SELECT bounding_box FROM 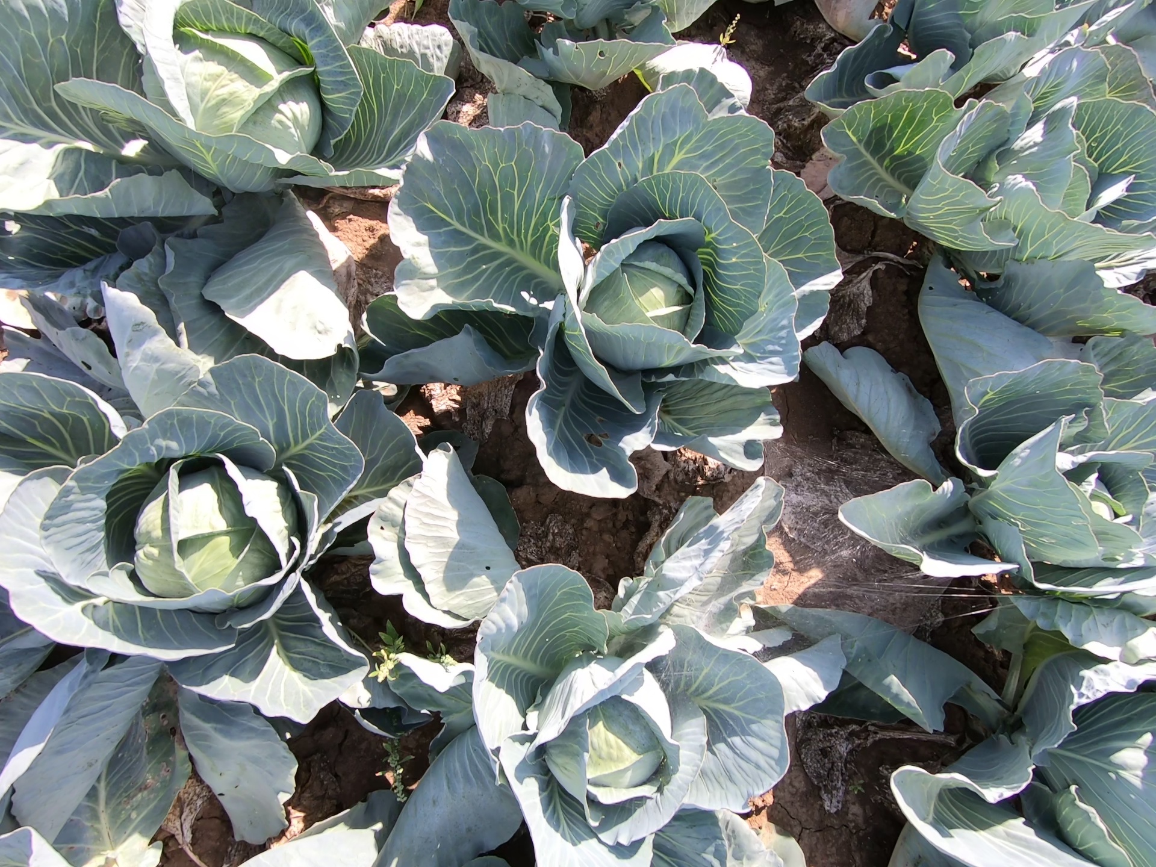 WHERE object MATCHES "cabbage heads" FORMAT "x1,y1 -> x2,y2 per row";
547,656 -> 672,794
1030,474 -> 1117,551
586,244 -> 692,361
148,27 -> 321,164
135,470 -> 291,609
